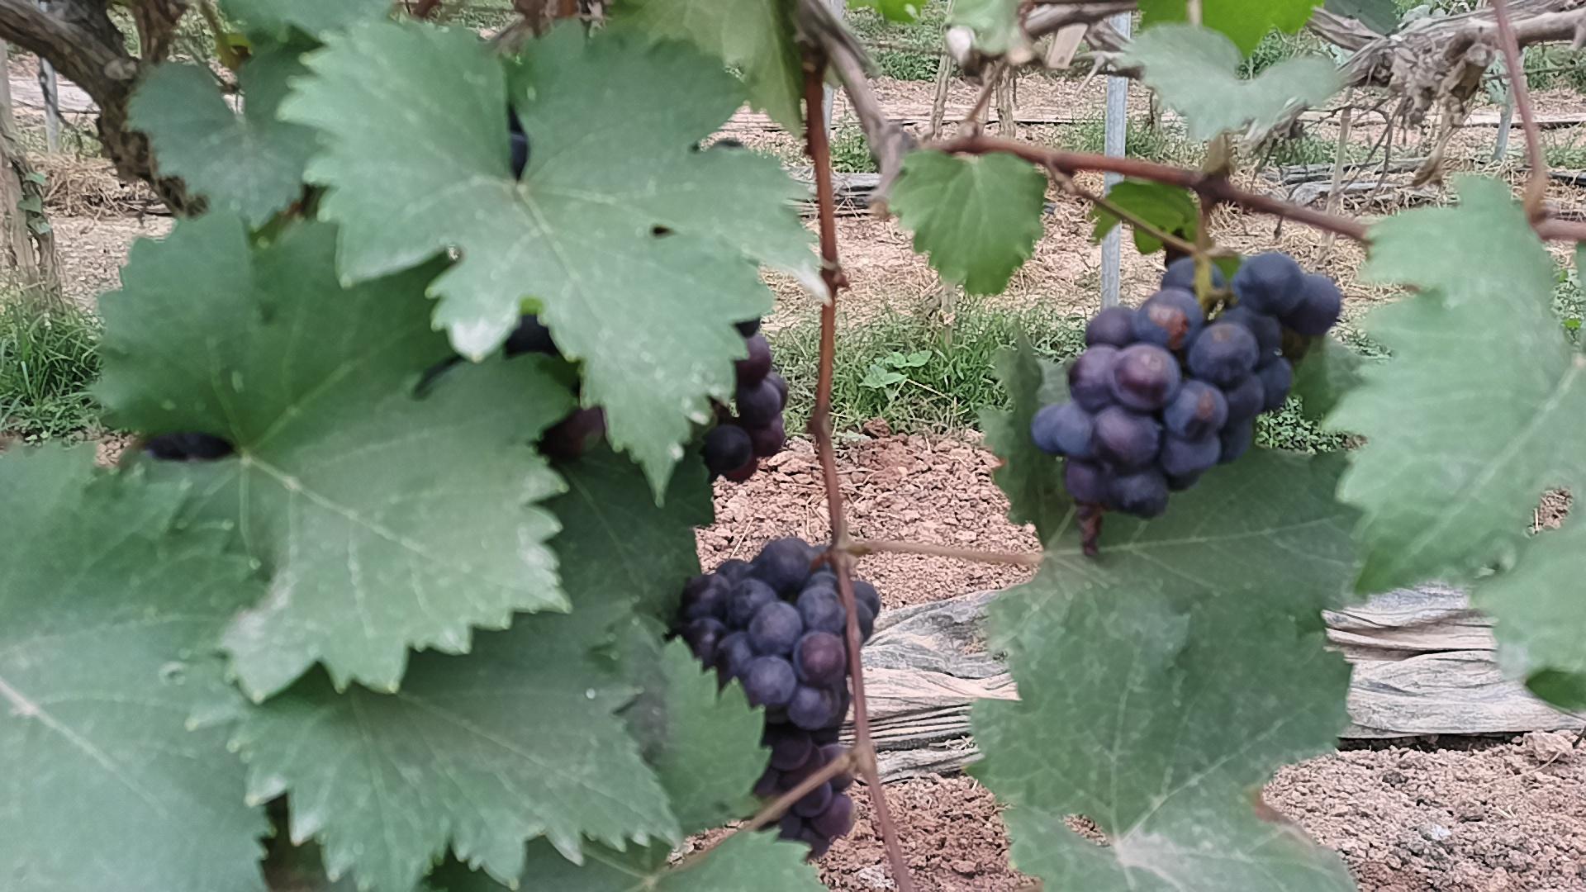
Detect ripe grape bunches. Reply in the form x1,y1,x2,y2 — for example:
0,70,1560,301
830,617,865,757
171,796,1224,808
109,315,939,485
1031,252,1341,518
672,537,880,862
696,316,789,484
